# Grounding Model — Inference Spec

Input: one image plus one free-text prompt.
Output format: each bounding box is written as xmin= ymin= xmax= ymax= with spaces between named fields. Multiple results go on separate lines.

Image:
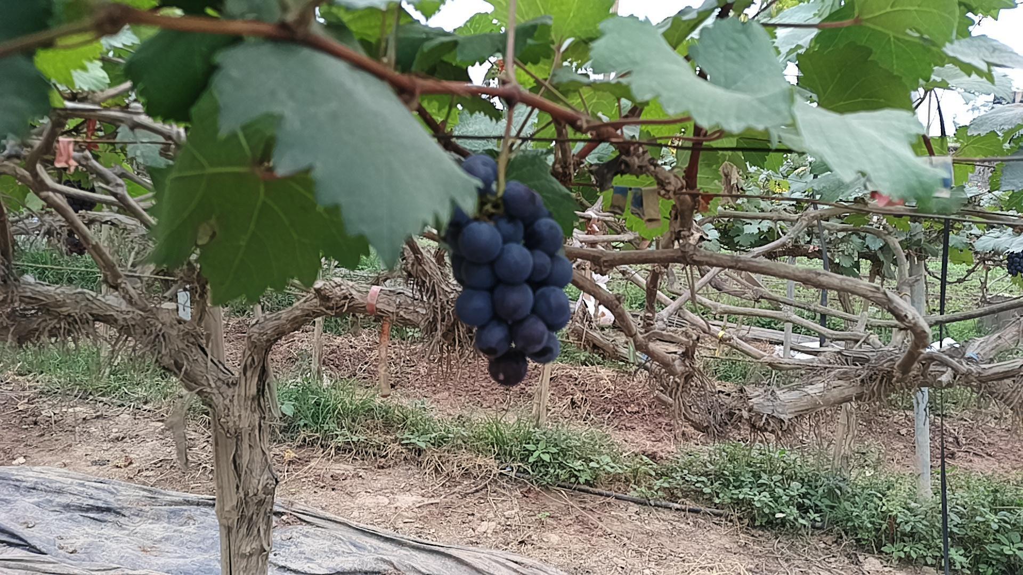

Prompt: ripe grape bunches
xmin=1003 ymin=243 xmax=1022 ymax=281
xmin=442 ymin=155 xmax=572 ymax=385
